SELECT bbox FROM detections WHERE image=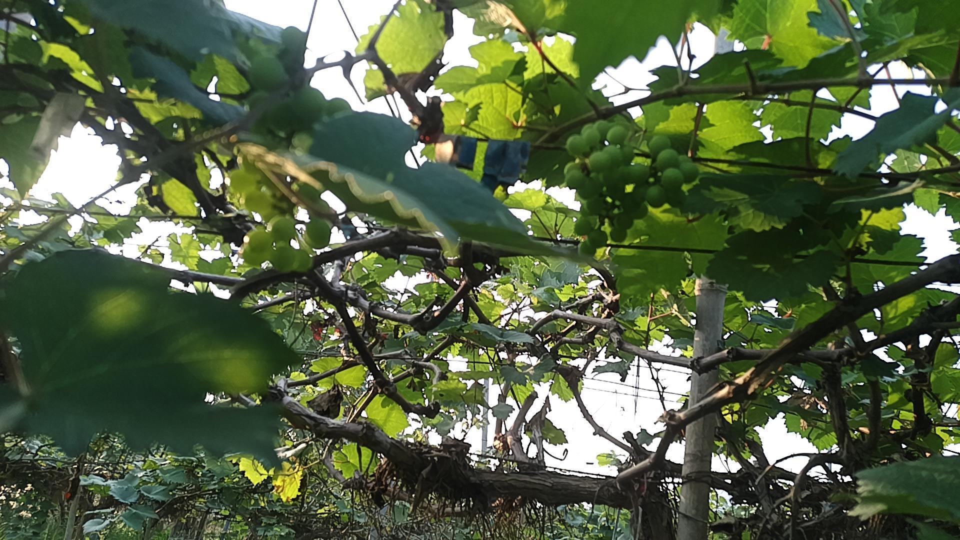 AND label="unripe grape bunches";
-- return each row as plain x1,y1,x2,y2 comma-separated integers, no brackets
228,22,358,276
564,116,700,254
